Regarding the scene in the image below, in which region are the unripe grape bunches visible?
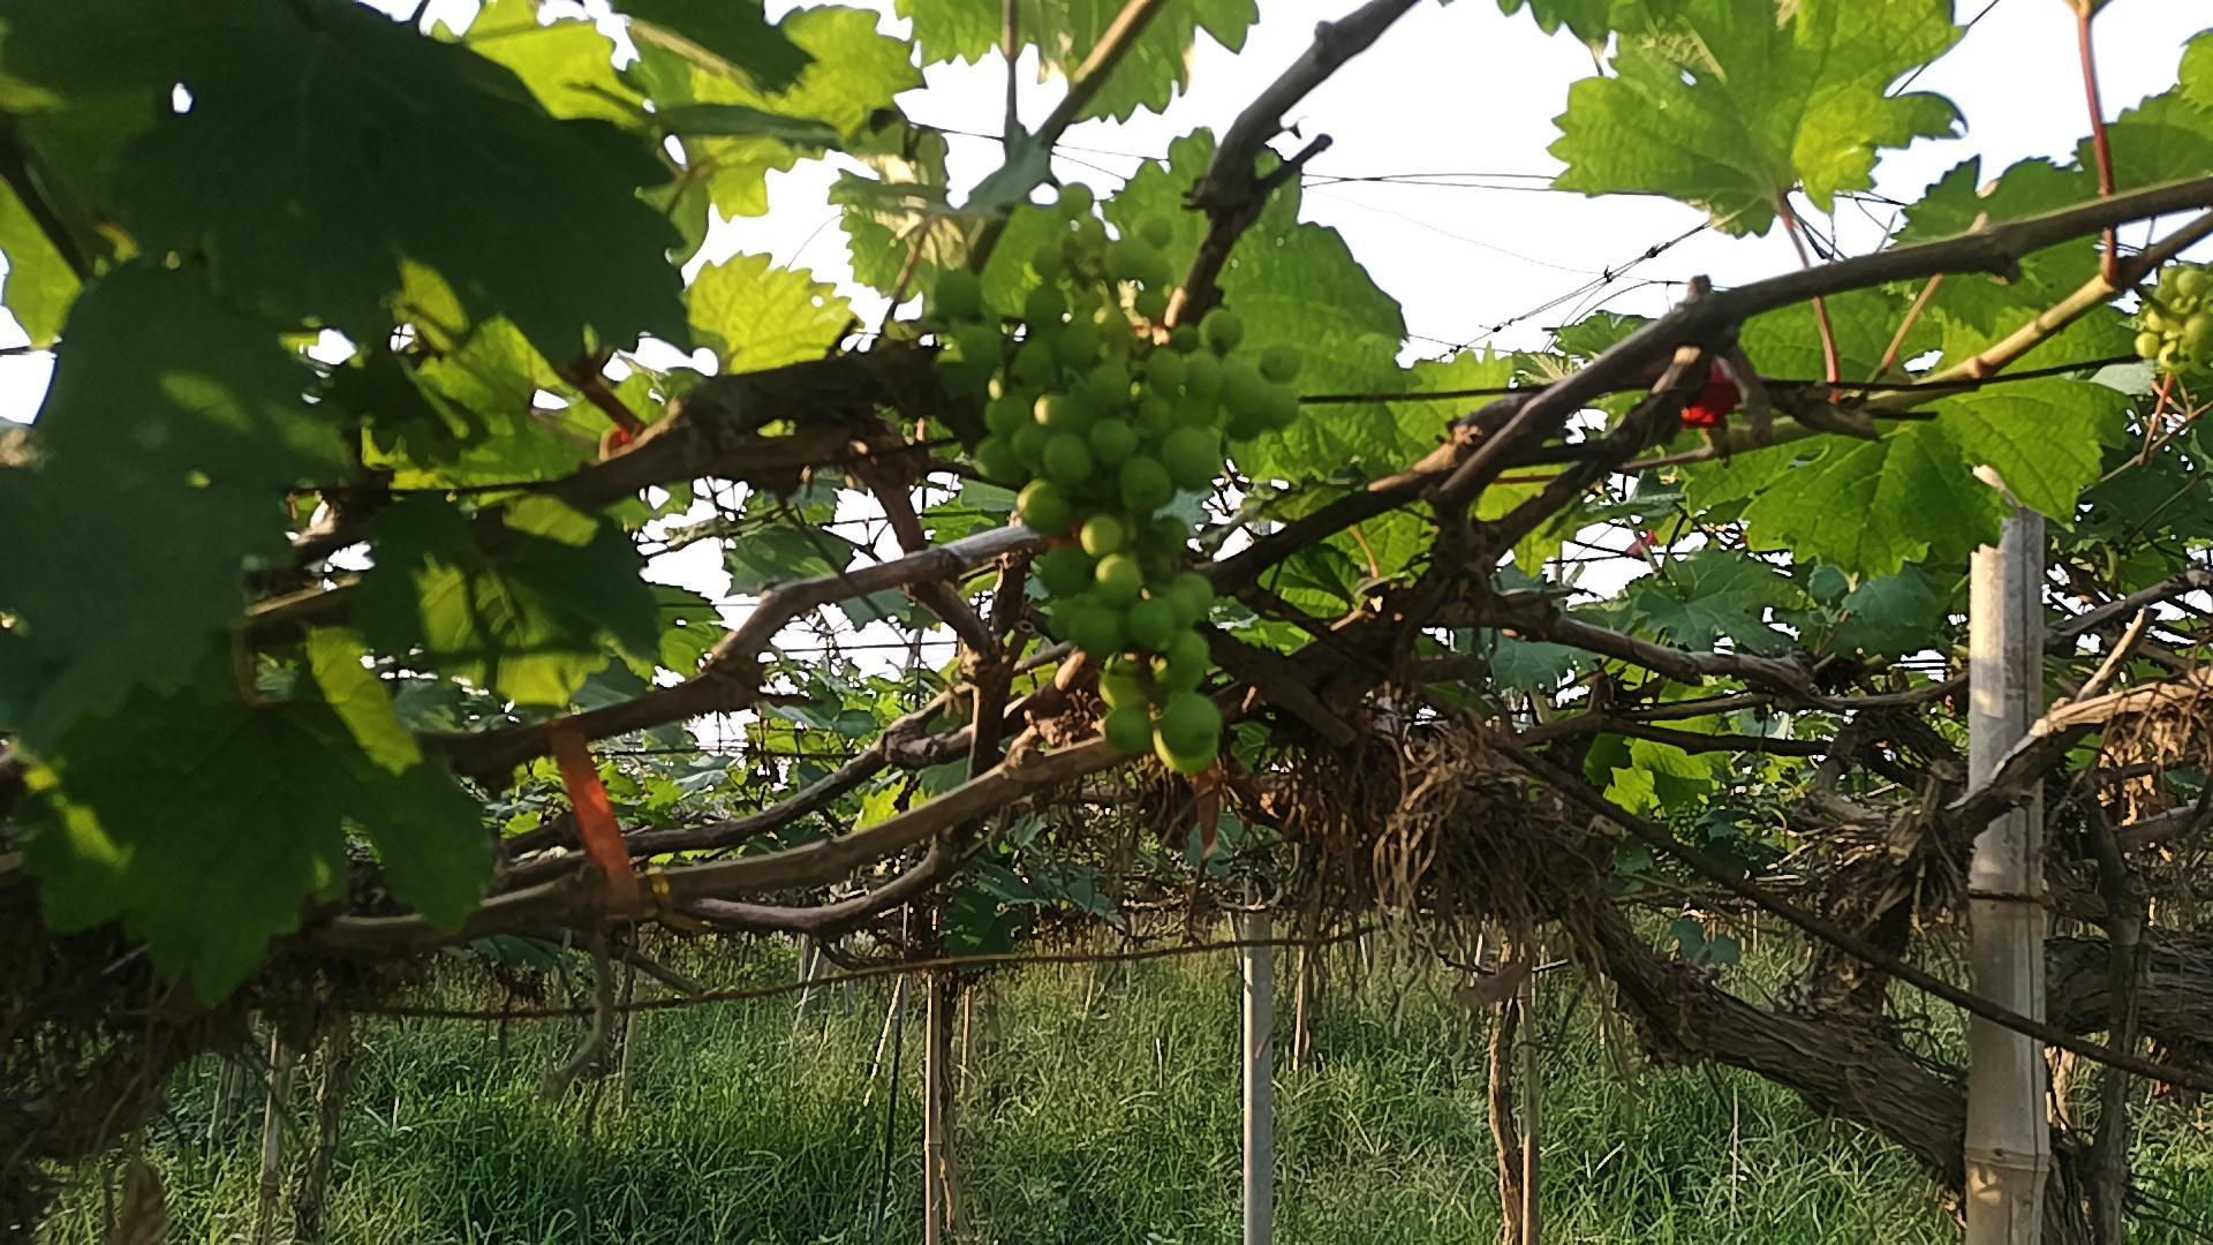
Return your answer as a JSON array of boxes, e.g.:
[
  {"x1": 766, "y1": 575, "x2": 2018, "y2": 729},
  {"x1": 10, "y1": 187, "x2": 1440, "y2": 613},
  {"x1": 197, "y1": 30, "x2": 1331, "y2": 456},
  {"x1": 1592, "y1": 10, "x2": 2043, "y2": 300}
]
[
  {"x1": 932, "y1": 172, "x2": 1302, "y2": 774},
  {"x1": 2135, "y1": 265, "x2": 2212, "y2": 388}
]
